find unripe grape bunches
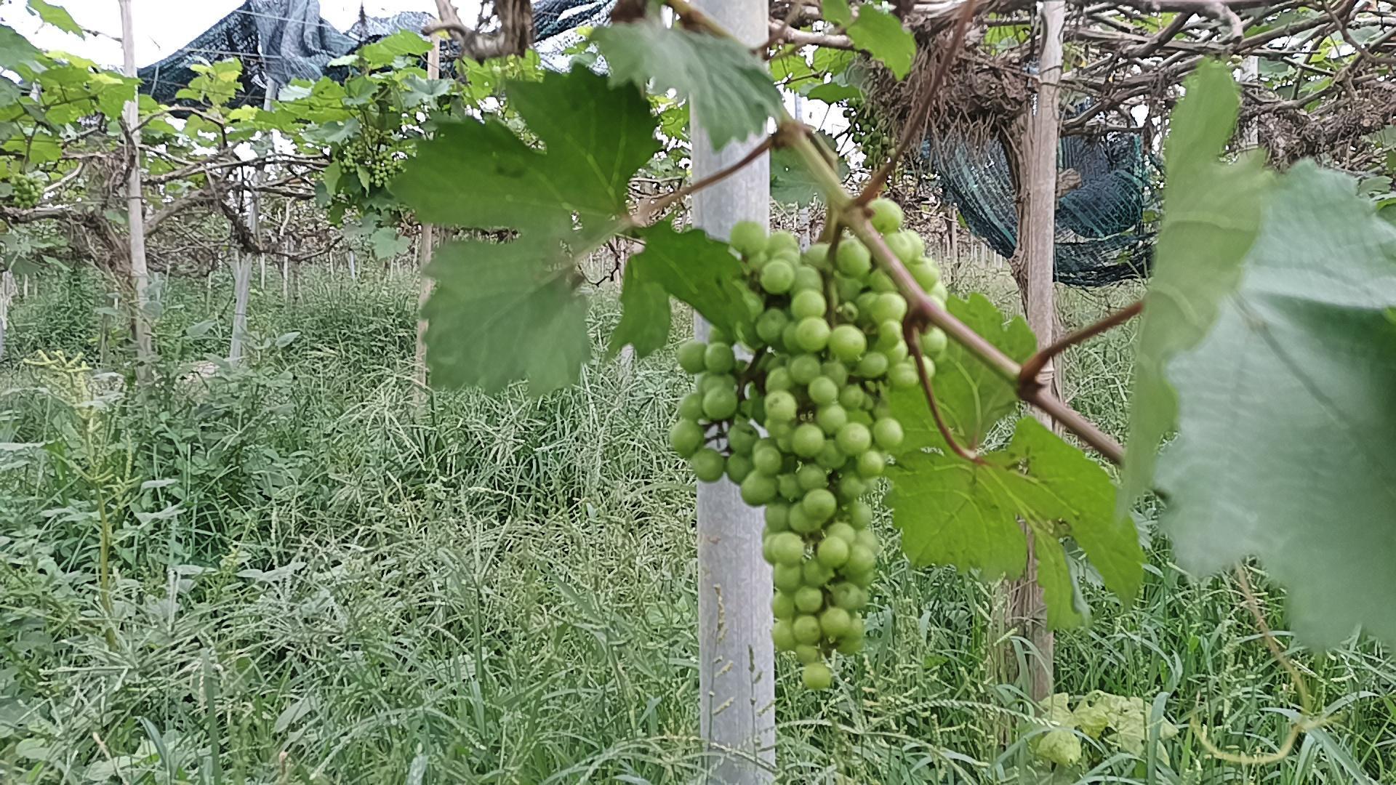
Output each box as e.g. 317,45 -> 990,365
673,199 -> 957,688
334,129 -> 403,188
